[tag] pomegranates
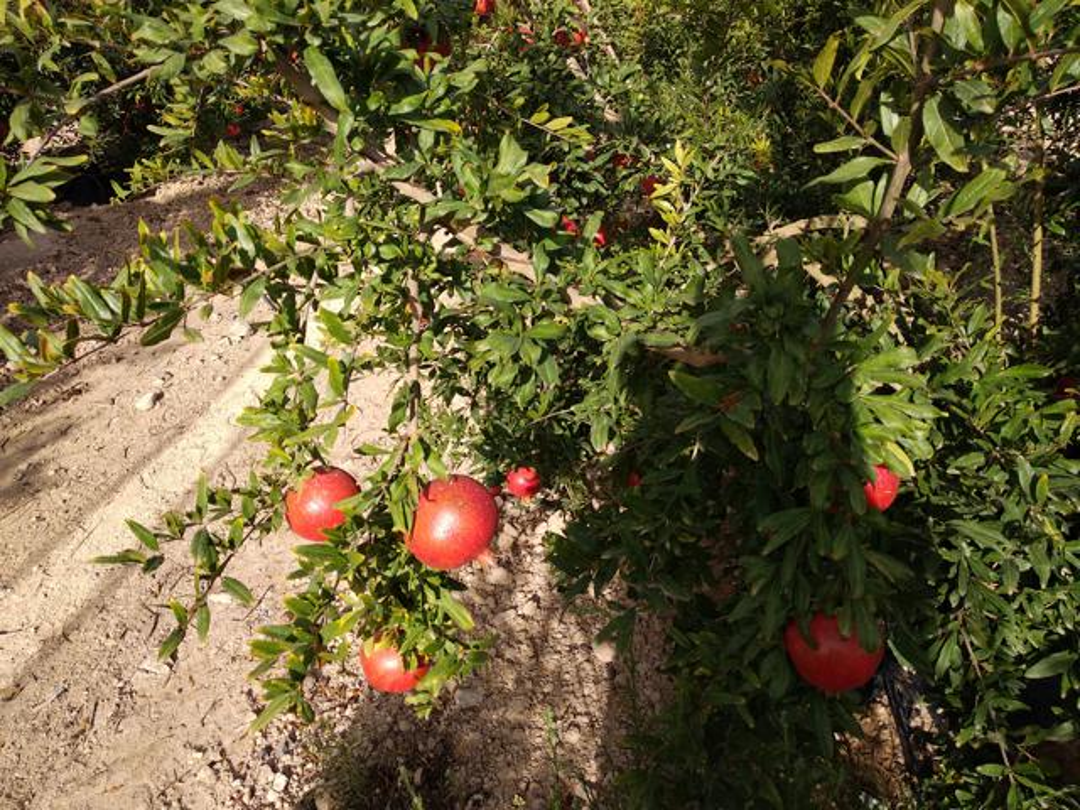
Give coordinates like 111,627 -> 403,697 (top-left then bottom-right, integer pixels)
785,611 -> 884,692
359,645 -> 430,695
862,464 -> 899,511
287,466 -> 363,543
505,464 -> 542,498
402,472 -> 506,574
